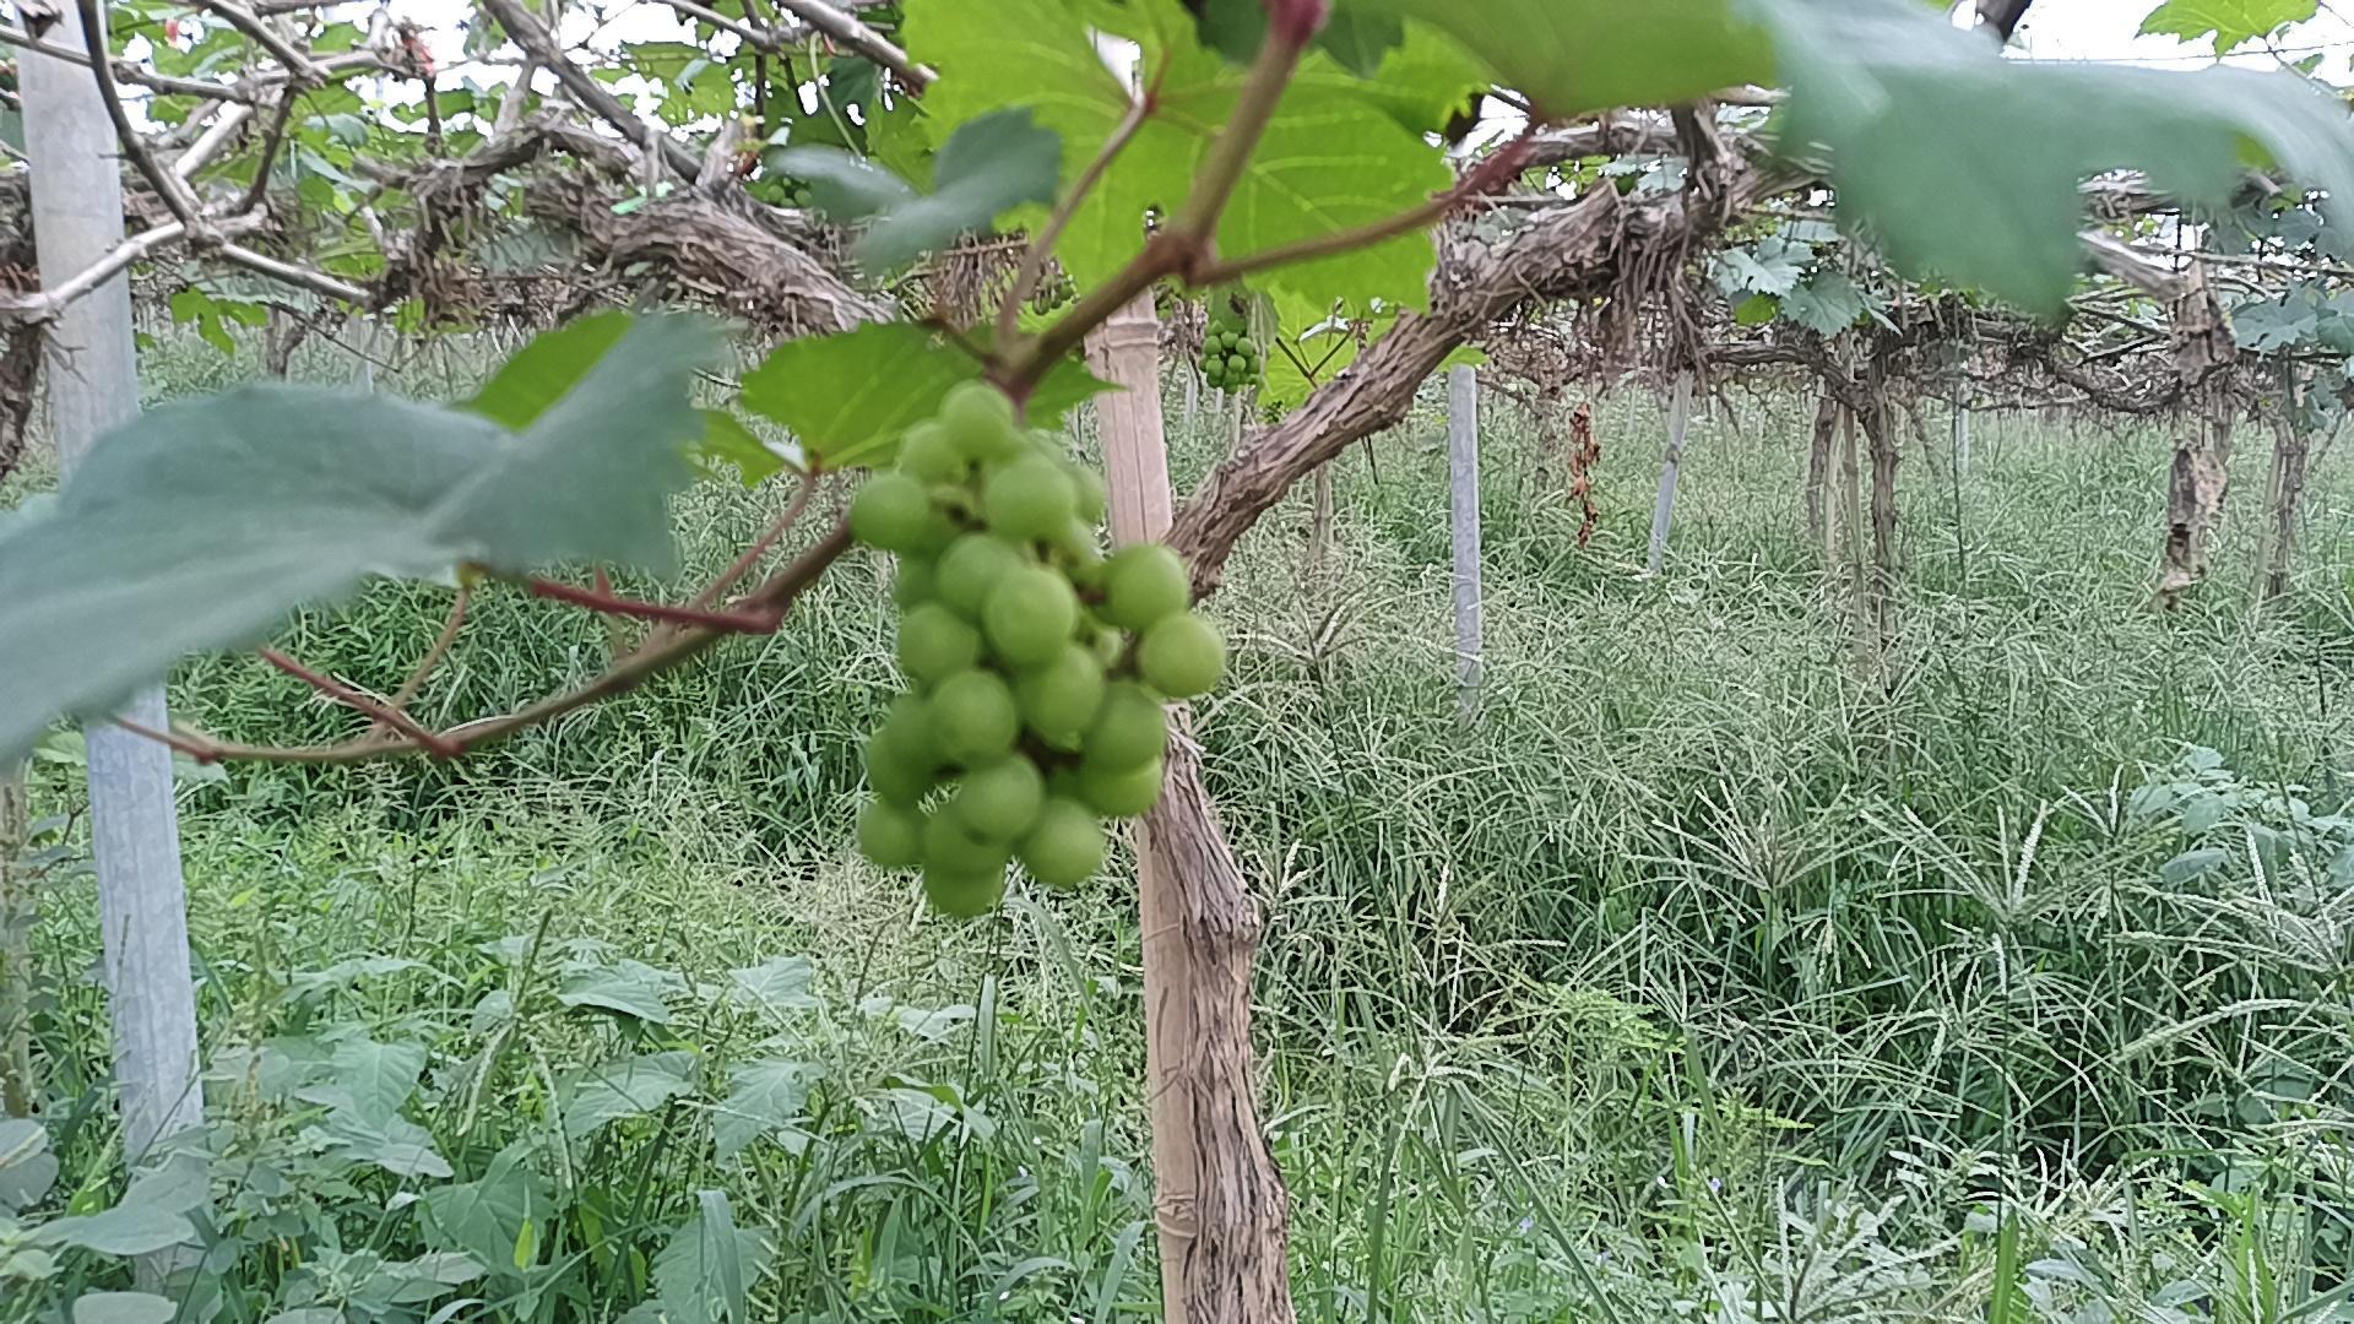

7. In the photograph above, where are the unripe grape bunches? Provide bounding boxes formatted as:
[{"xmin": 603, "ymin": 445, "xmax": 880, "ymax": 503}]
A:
[
  {"xmin": 1199, "ymin": 321, "xmax": 1260, "ymax": 394},
  {"xmin": 848, "ymin": 381, "xmax": 1224, "ymax": 918}
]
